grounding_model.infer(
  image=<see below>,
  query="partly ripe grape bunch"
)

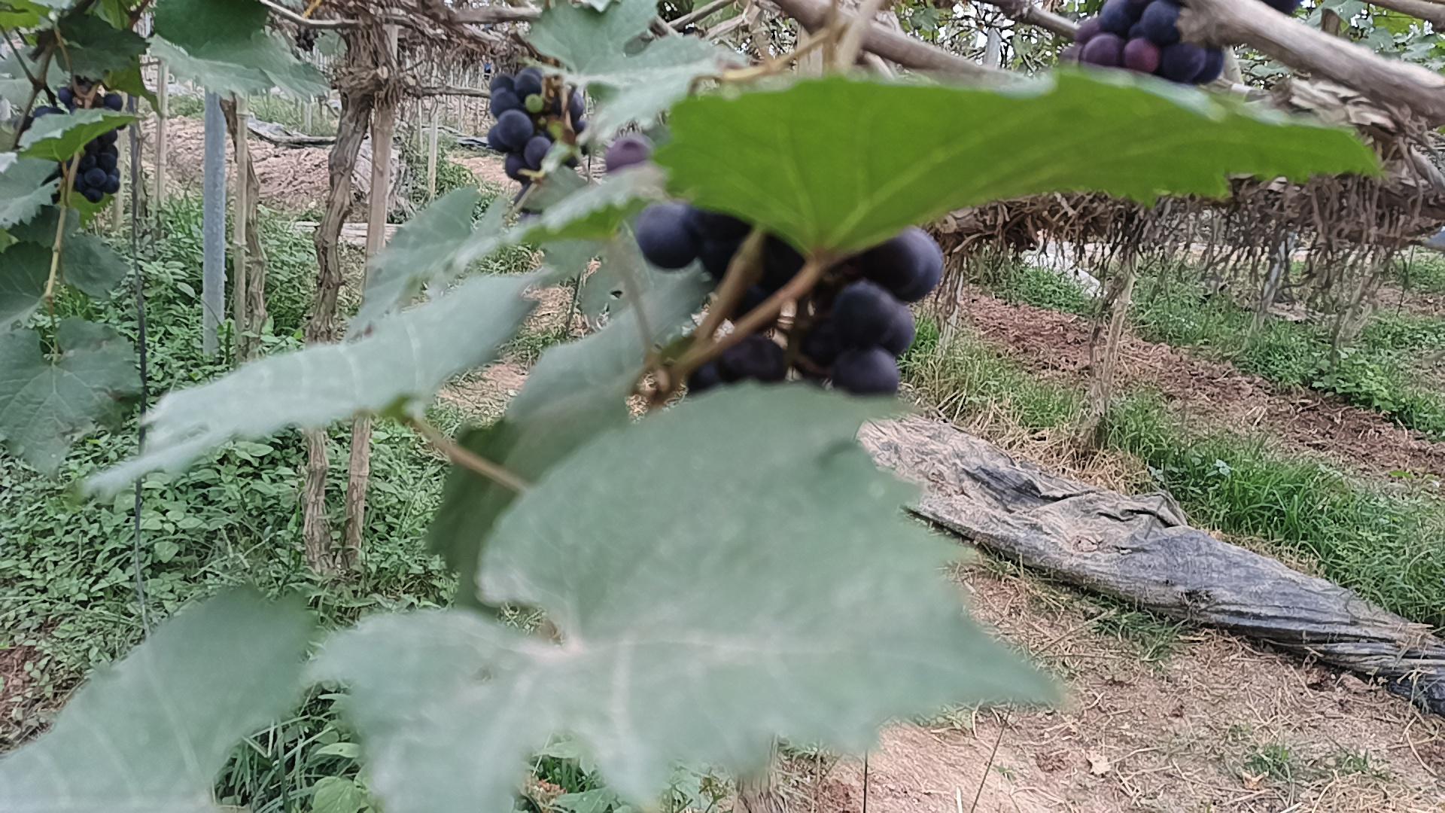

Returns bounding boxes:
[488,66,586,187]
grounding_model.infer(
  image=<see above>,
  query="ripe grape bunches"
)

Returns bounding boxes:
[634,204,943,394]
[1060,0,1226,85]
[605,134,652,172]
